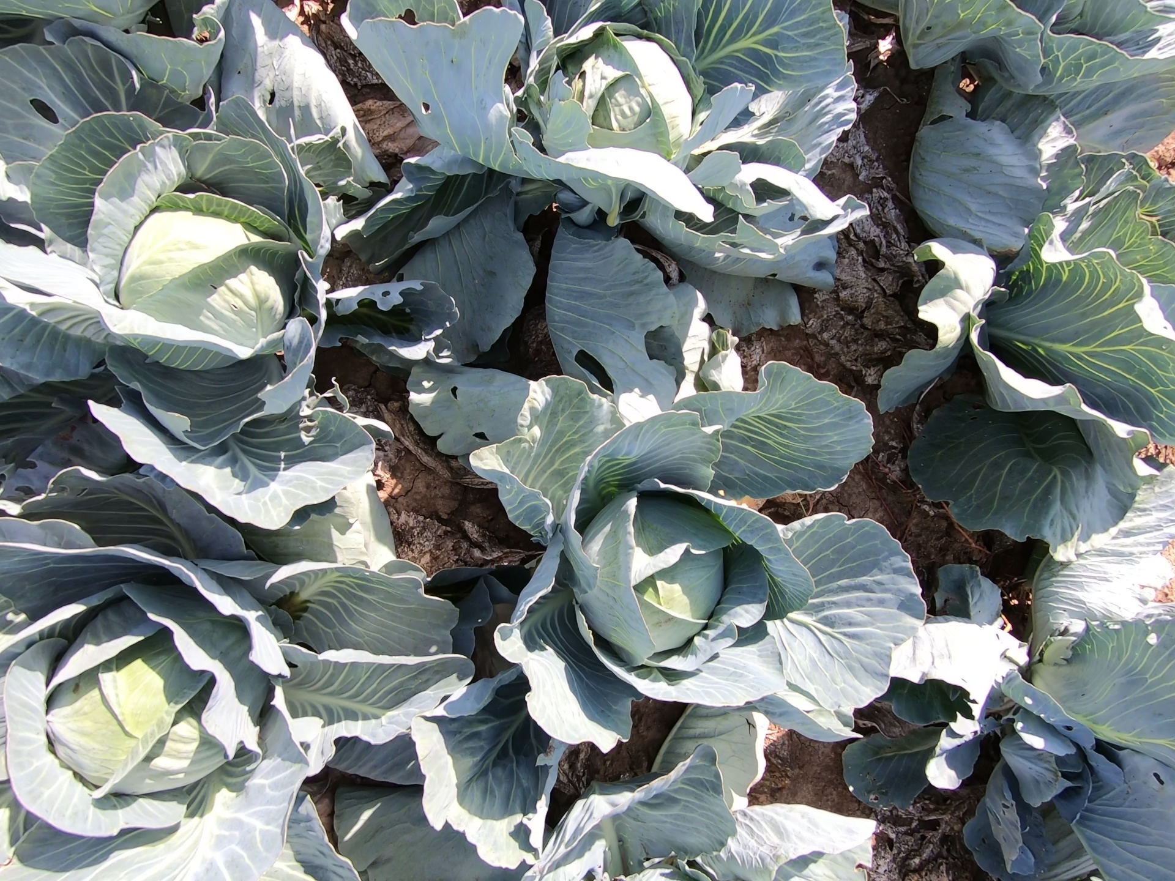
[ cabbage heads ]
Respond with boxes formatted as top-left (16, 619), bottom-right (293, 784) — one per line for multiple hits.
top-left (43, 592), bottom-right (260, 794)
top-left (581, 499), bottom-right (722, 653)
top-left (559, 32), bottom-right (692, 179)
top-left (1008, 733), bottom-right (1081, 790)
top-left (116, 194), bottom-right (287, 365)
